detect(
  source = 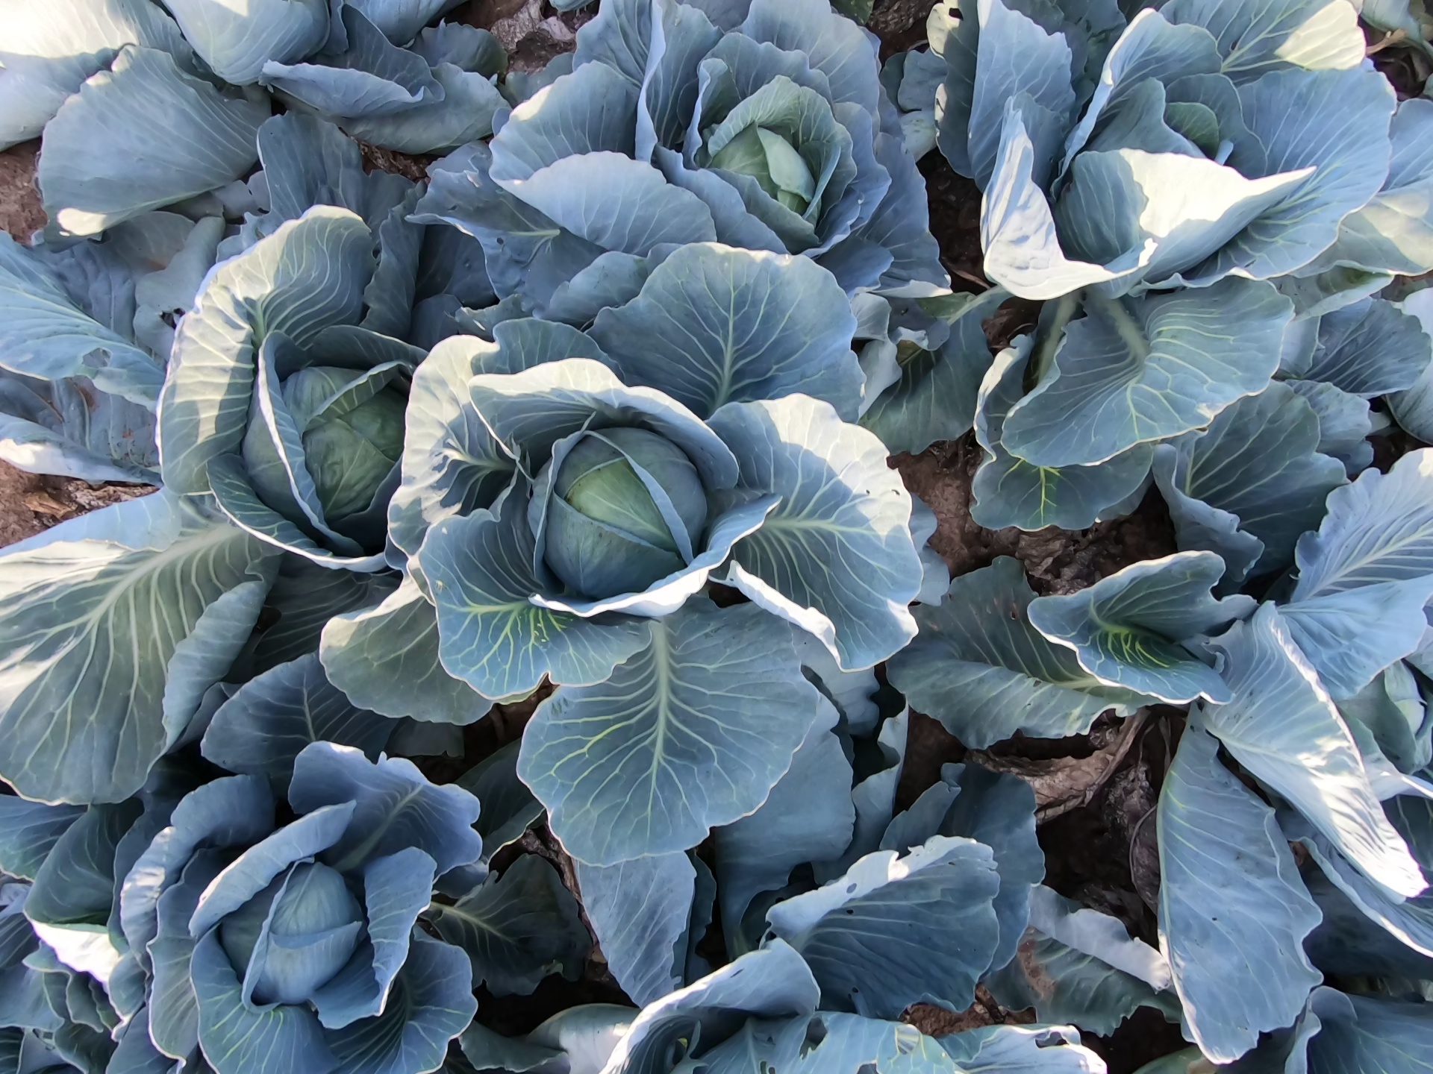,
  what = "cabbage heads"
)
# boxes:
[526,428,705,594]
[1086,134,1221,268]
[1279,642,1425,774]
[272,366,438,532]
[696,123,824,254]
[227,861,360,1003]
